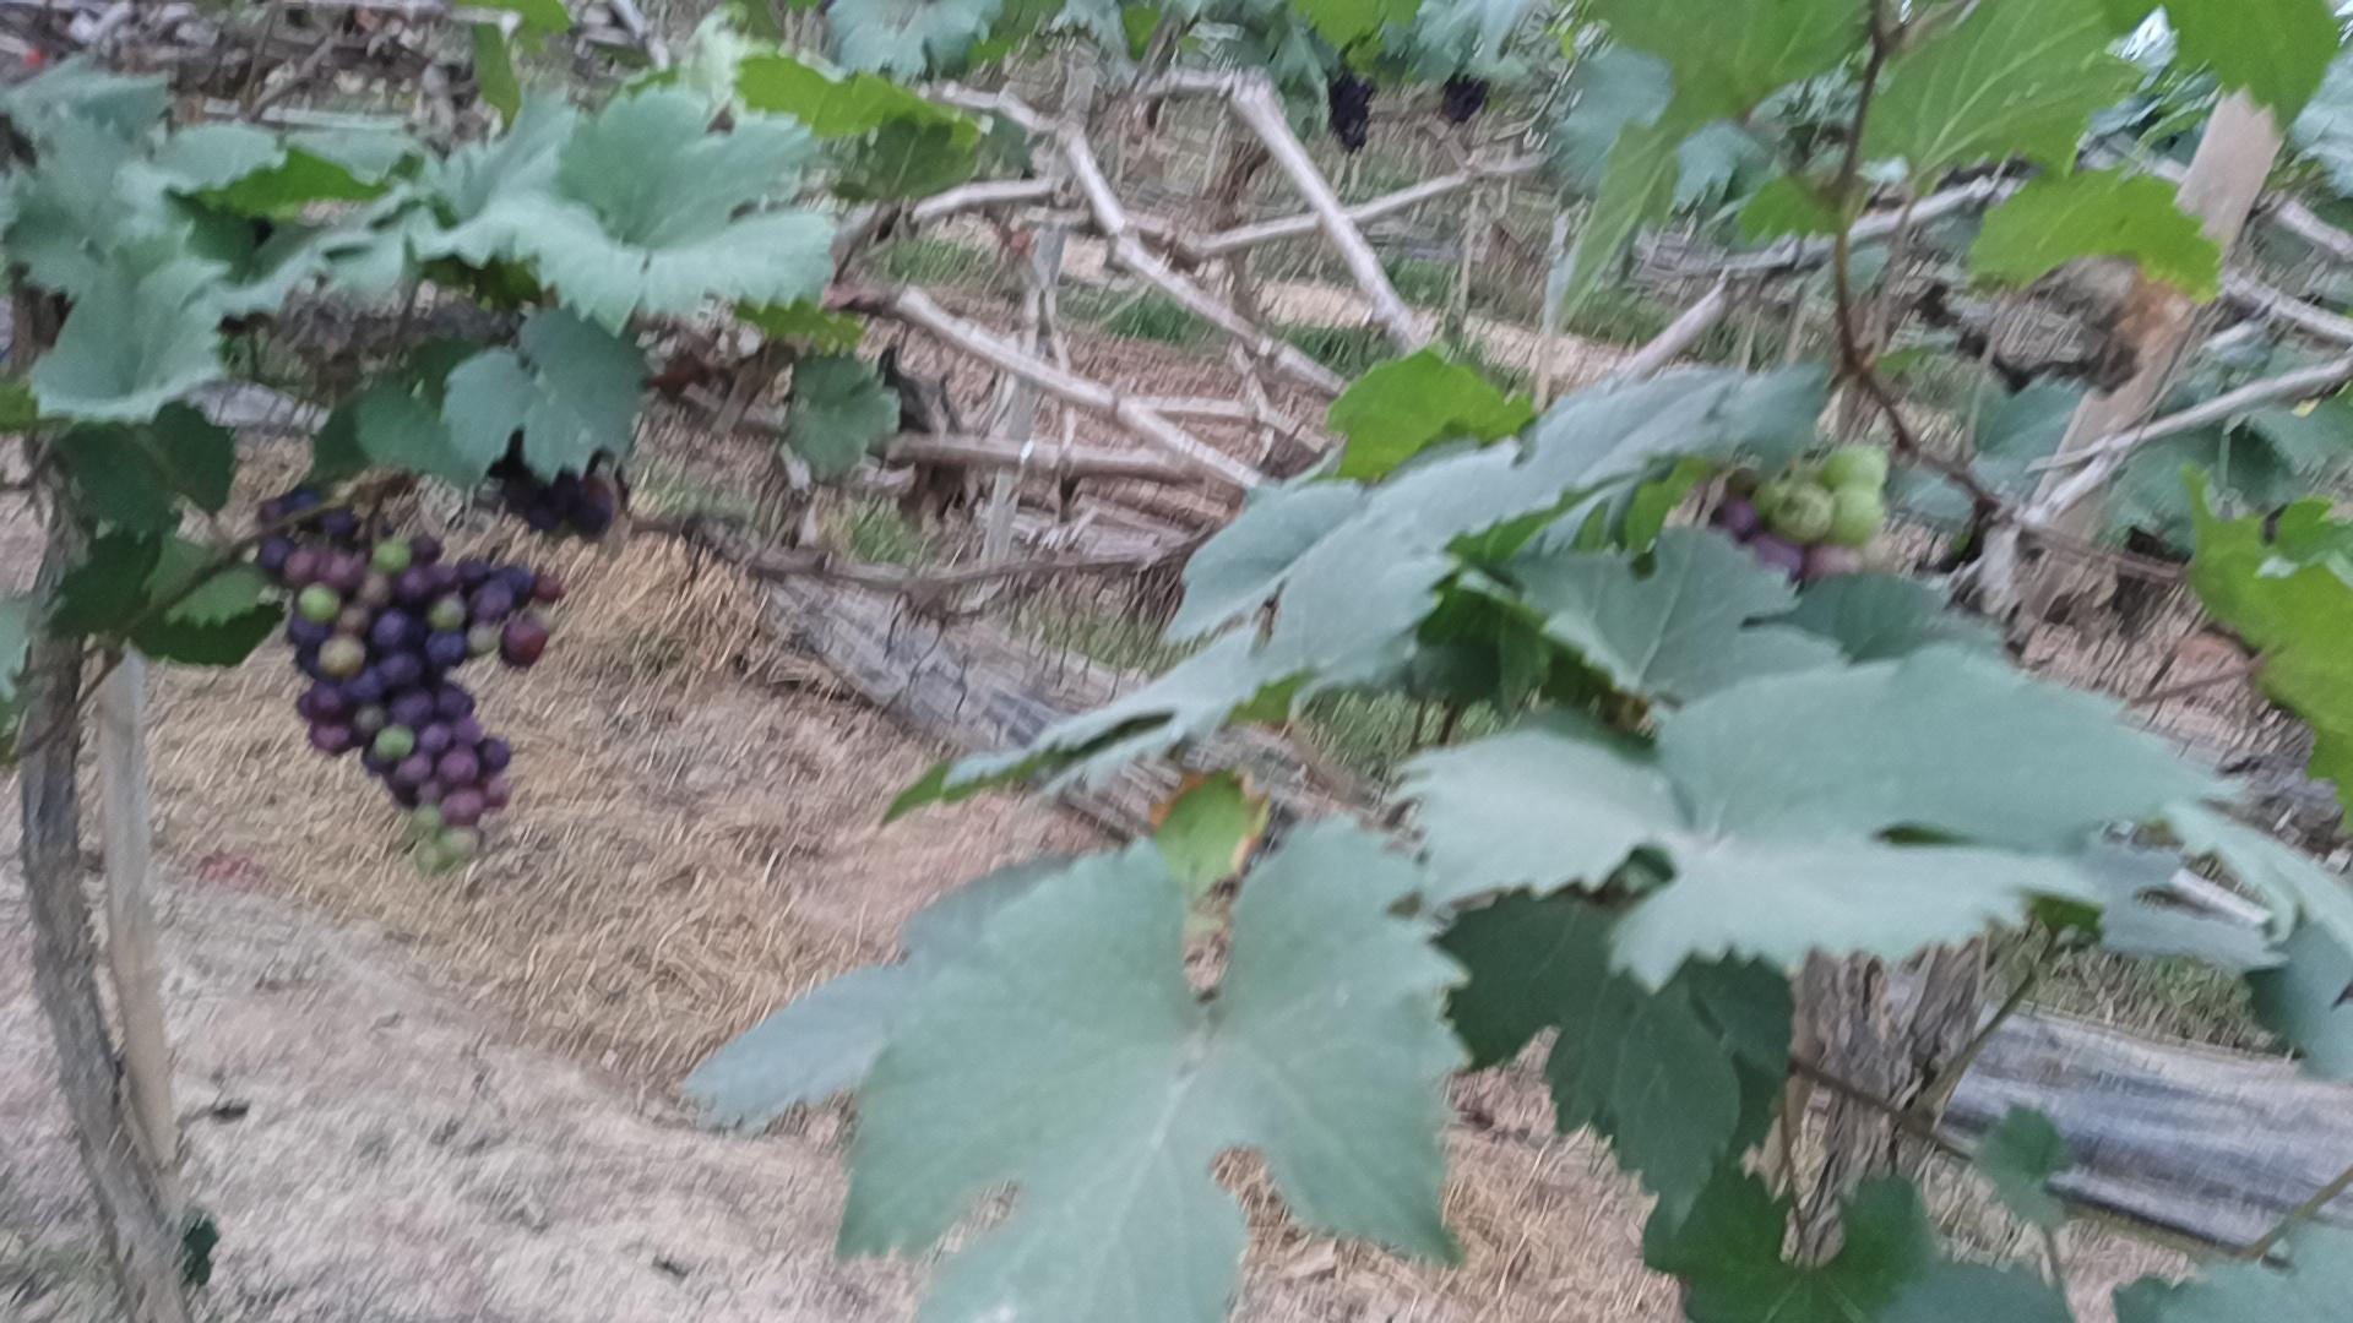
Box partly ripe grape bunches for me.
[254,486,561,866]
[1711,446,1886,578]
[488,431,629,539]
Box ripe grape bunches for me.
[1439,72,1489,125]
[1327,66,1375,156]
